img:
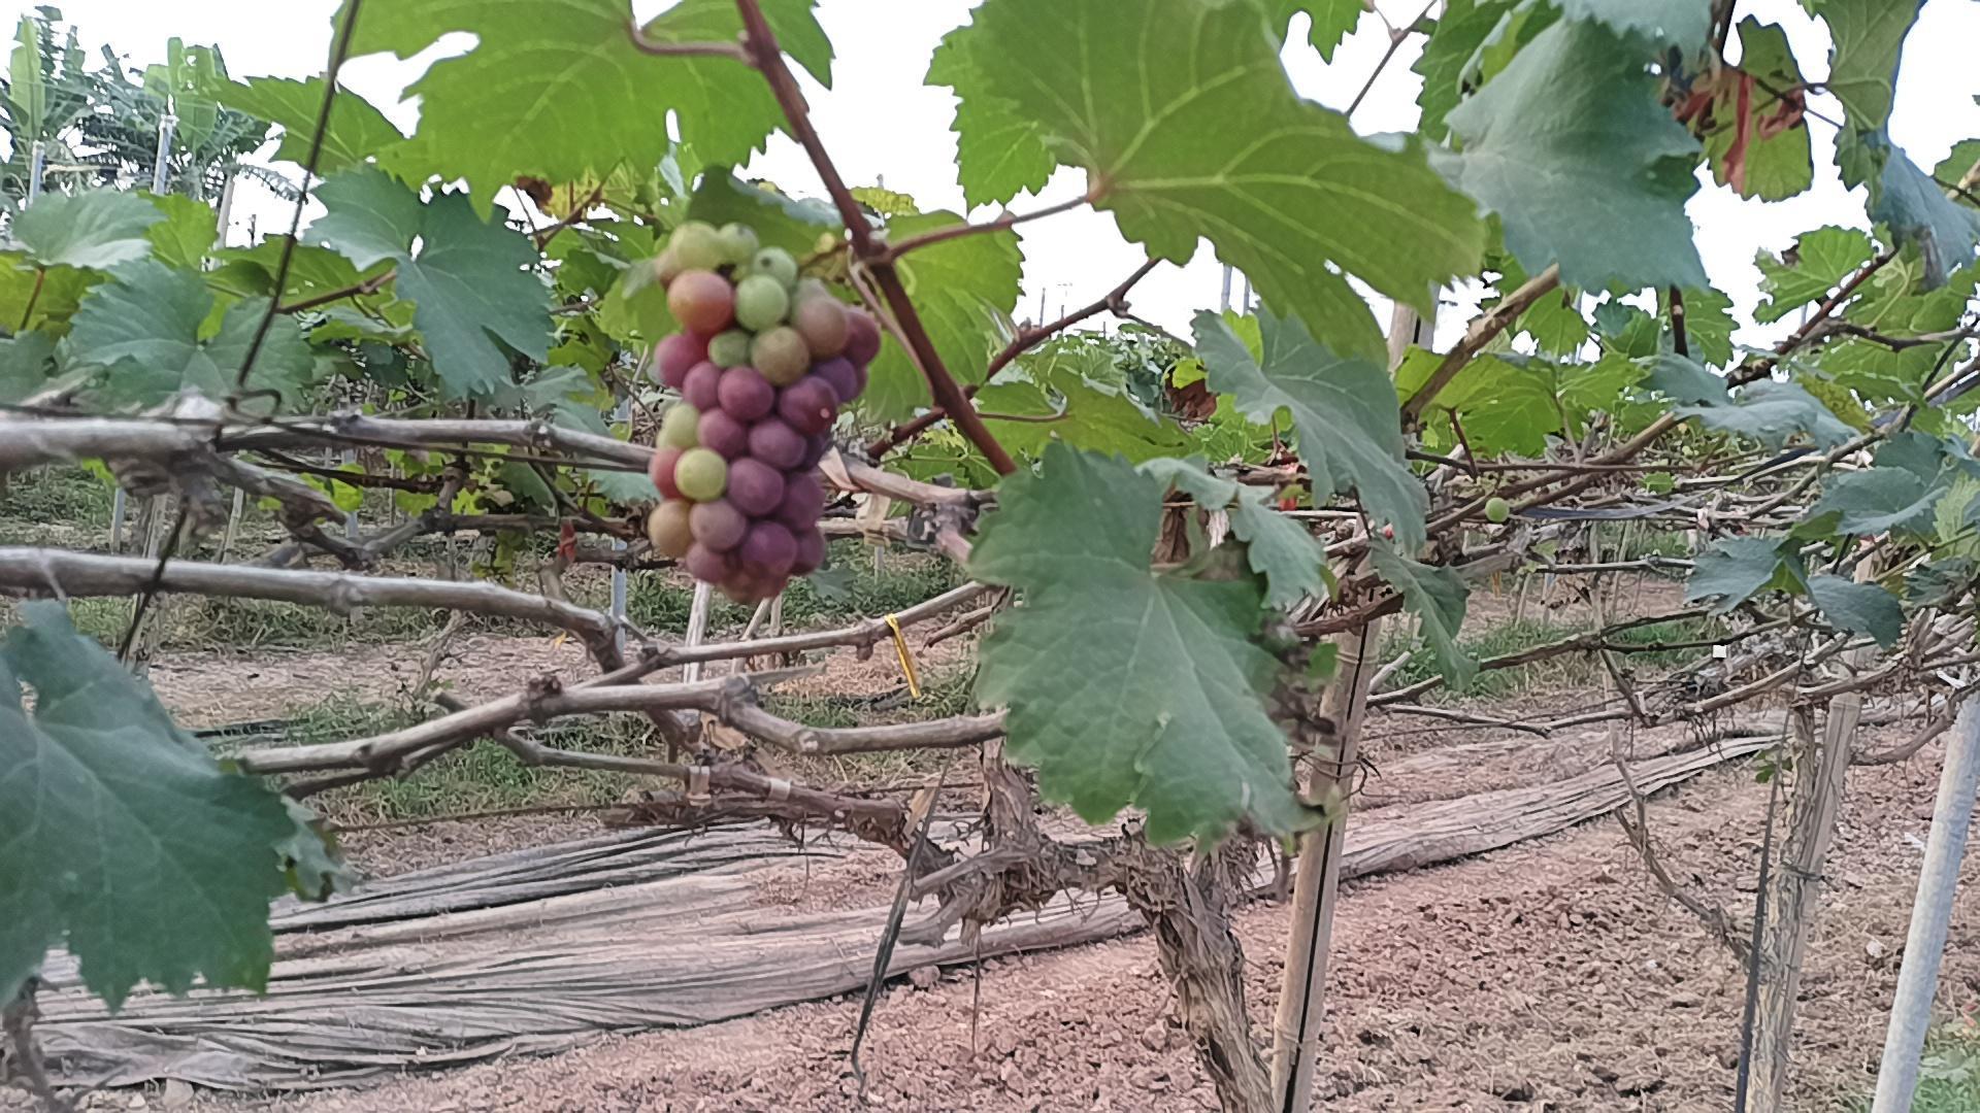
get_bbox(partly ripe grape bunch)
[645,222,879,602]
